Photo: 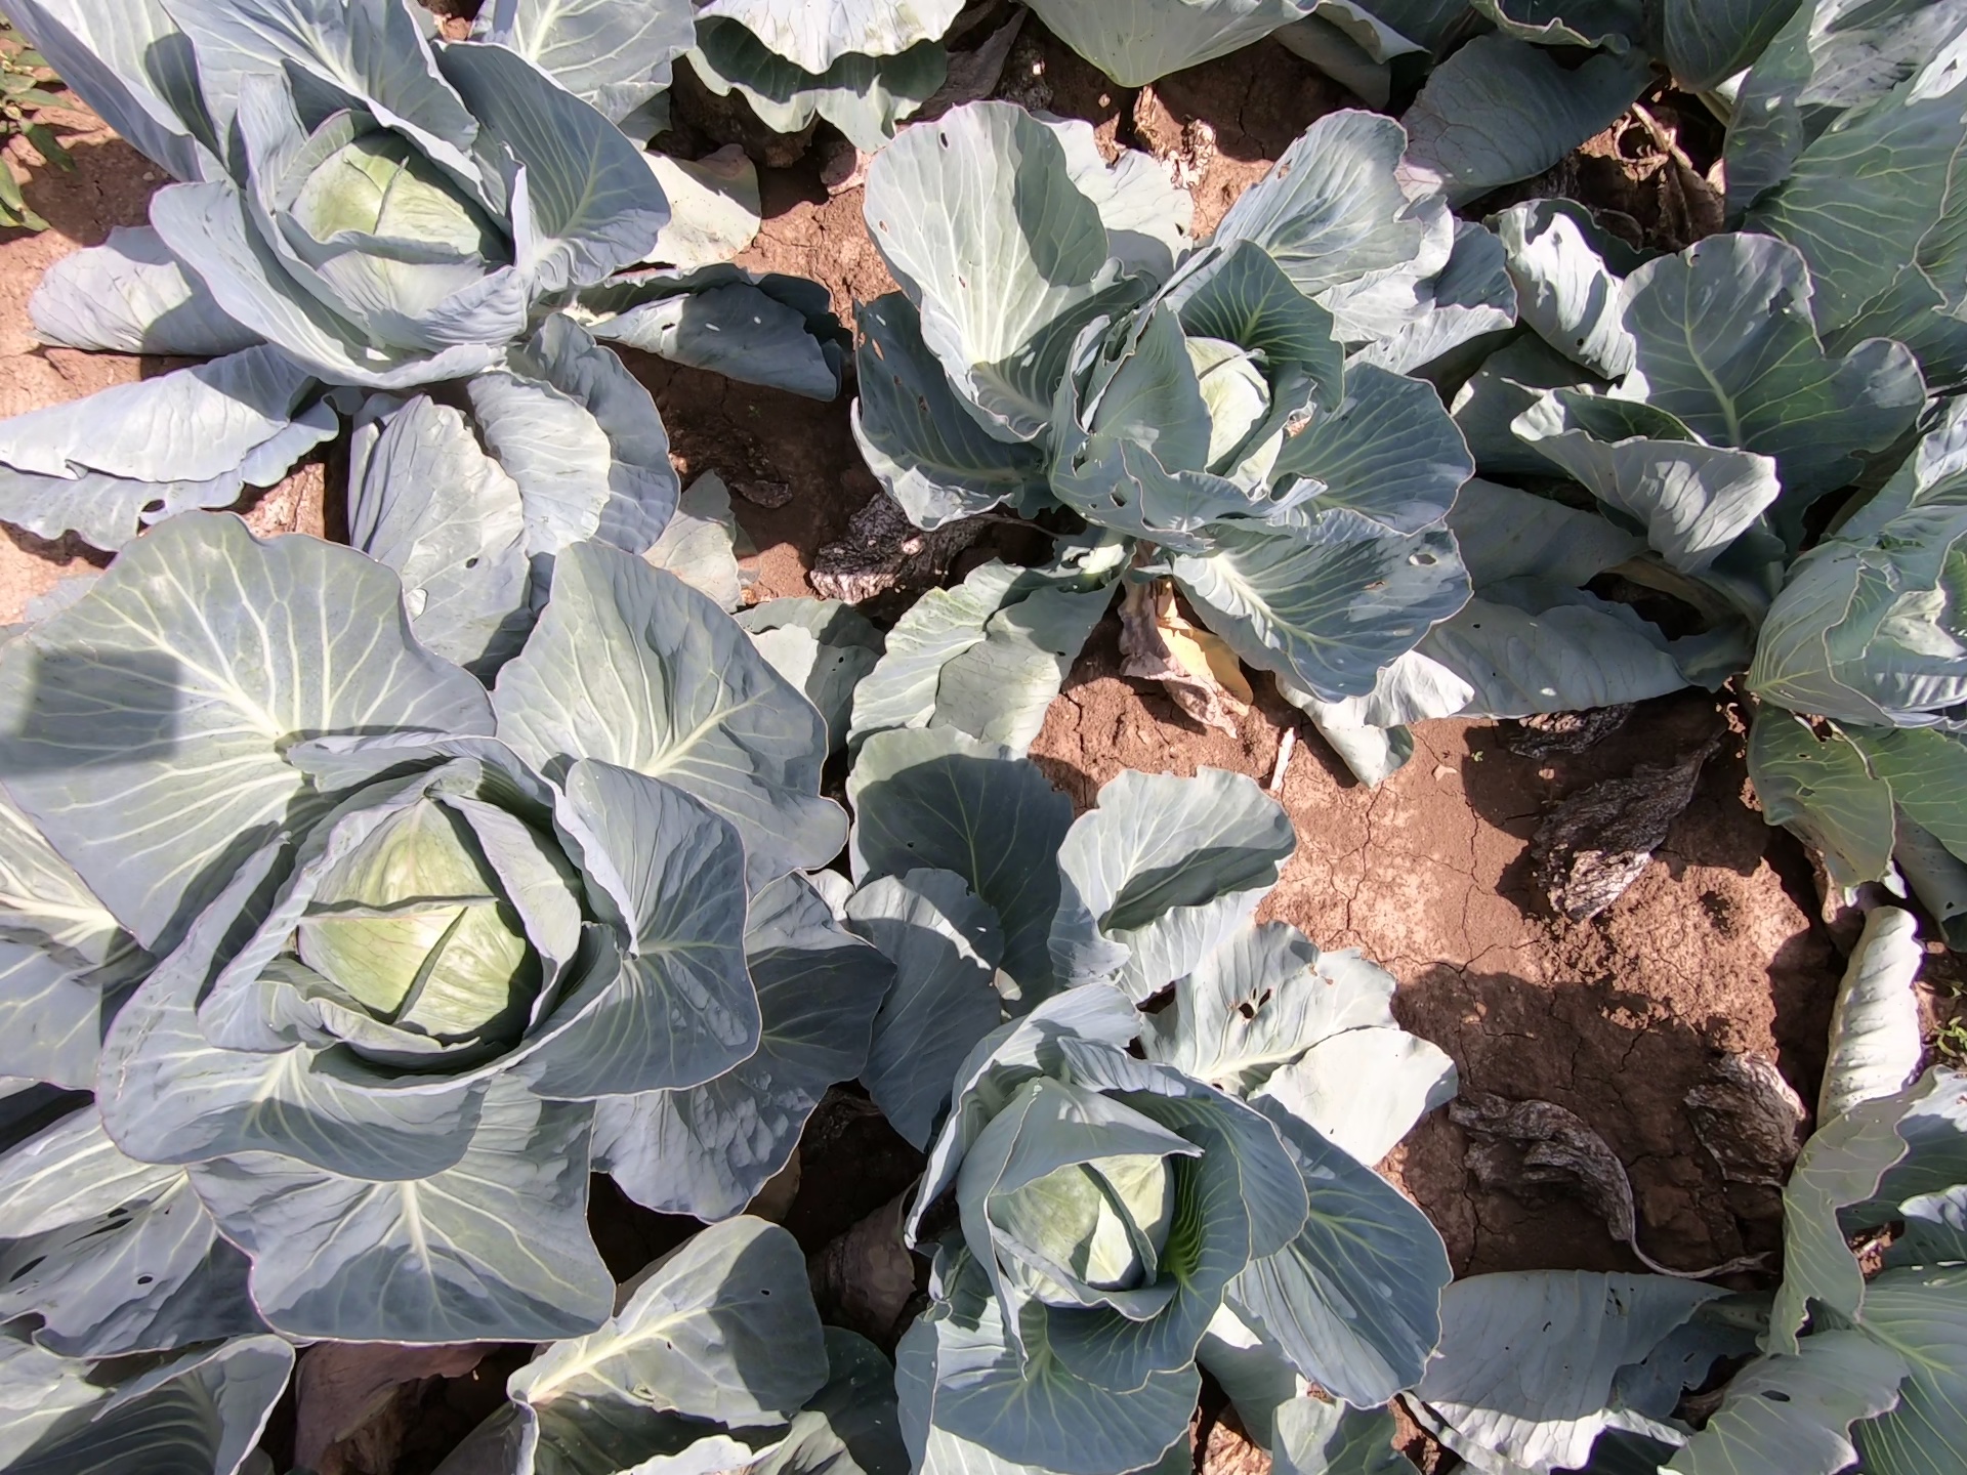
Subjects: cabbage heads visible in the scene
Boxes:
[275,129,517,351]
[1092,332,1280,532]
[1813,545,1964,721]
[295,789,582,1068]
[972,1083,1177,1312]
